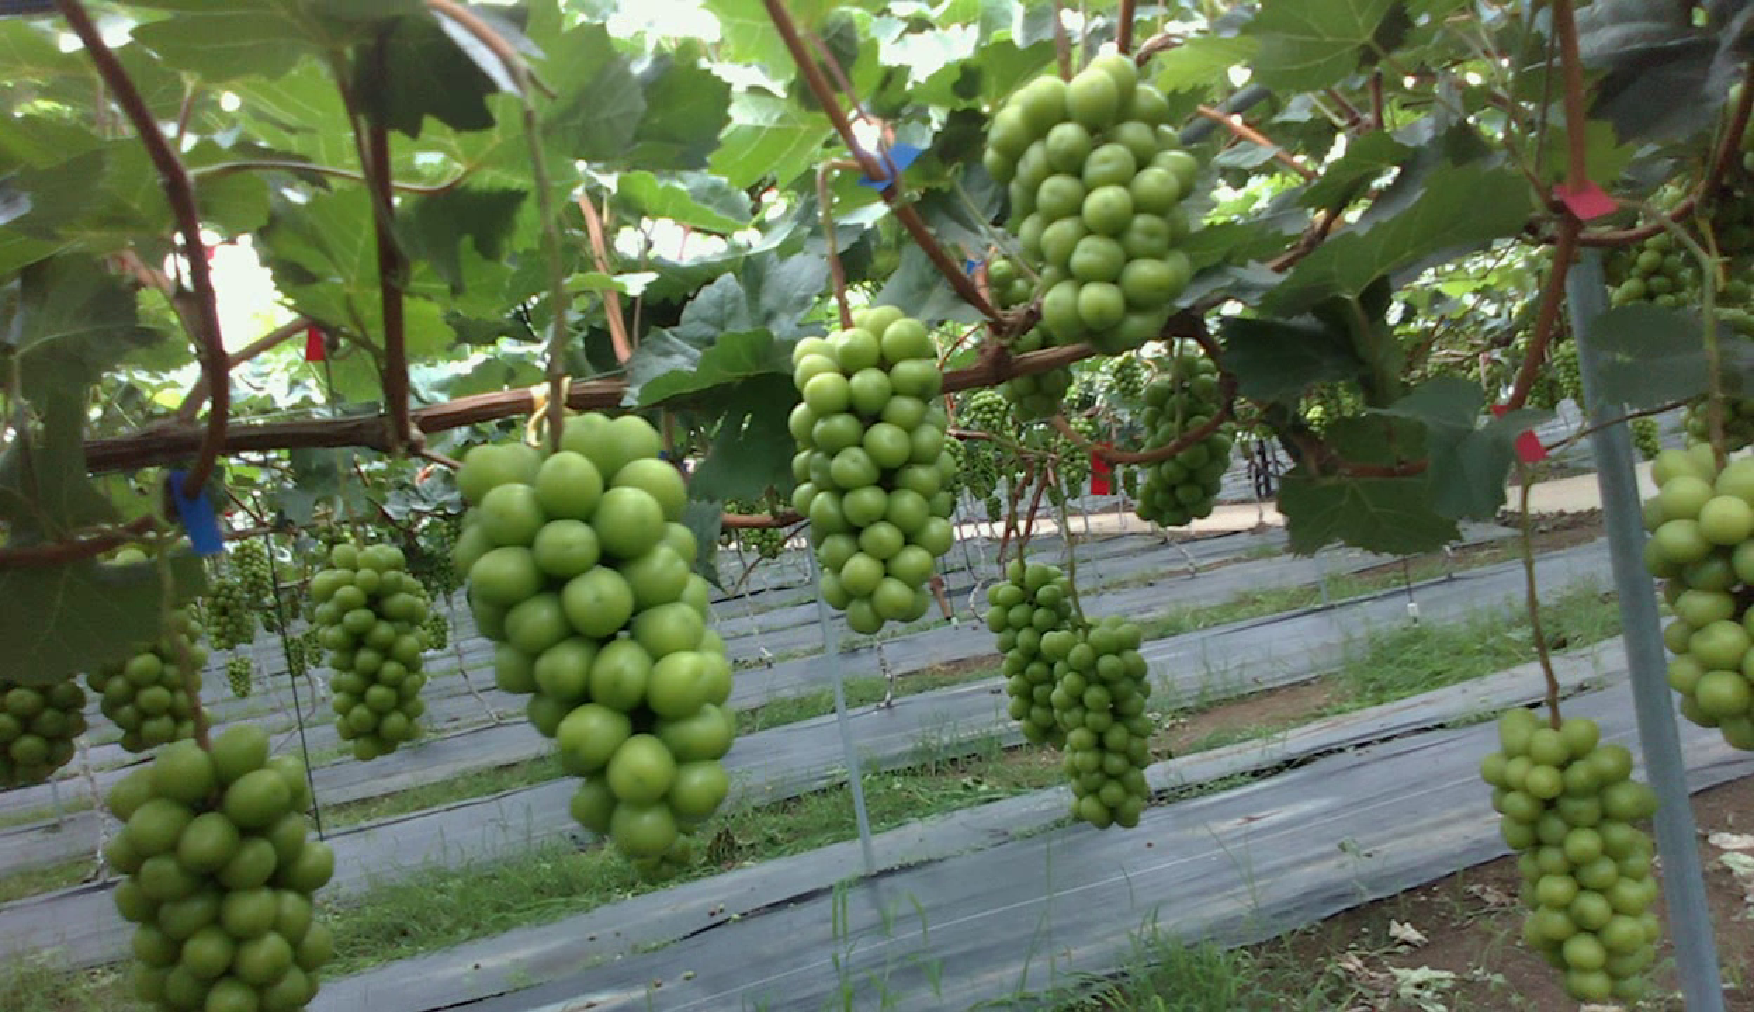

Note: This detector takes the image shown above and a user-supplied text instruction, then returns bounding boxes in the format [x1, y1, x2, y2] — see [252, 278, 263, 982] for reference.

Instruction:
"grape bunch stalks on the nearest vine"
[1518, 468, 1563, 727]
[817, 157, 862, 327]
[152, 469, 208, 746]
[1623, 197, 1729, 468]
[438, 0, 568, 451]
[1051, 0, 1070, 74]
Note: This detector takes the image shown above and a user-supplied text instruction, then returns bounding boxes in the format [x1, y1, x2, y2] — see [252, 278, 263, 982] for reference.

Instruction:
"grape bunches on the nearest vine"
[100, 728, 336, 1011]
[790, 305, 957, 635]
[1479, 707, 1658, 1006]
[984, 55, 1196, 357]
[451, 412, 734, 862]
[1640, 443, 1753, 751]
